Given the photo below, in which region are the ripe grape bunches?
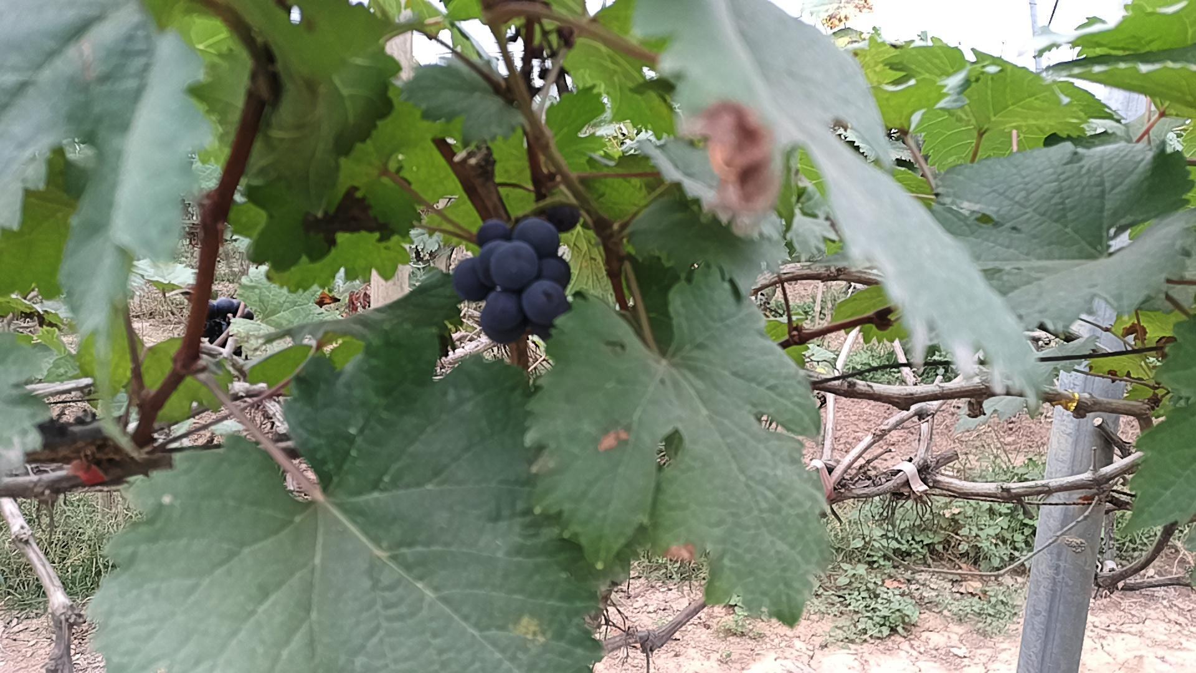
[202,298,252,358]
[453,217,570,344]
